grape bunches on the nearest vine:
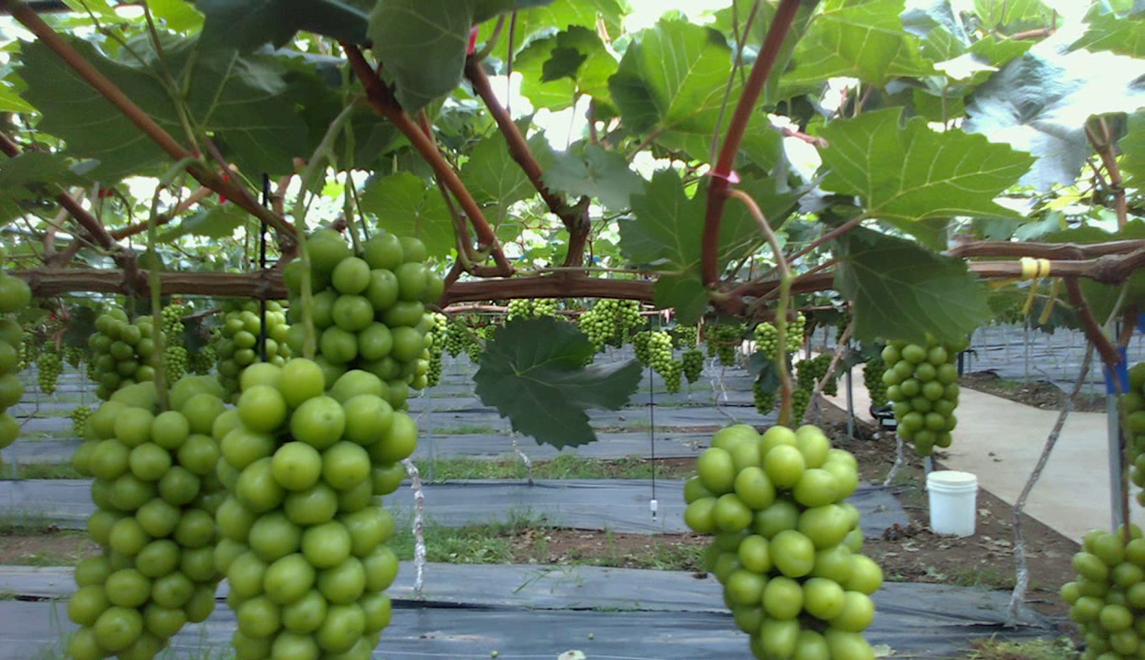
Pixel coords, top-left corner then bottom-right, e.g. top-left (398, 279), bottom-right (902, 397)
top-left (684, 422), bottom-right (881, 659)
top-left (66, 373), bottom-right (227, 659)
top-left (283, 230), bottom-right (446, 408)
top-left (215, 355), bottom-right (417, 659)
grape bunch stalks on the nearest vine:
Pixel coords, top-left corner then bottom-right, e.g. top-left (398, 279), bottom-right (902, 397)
top-left (148, 157), bottom-right (213, 413)
top-left (725, 191), bottom-right (790, 426)
top-left (293, 100), bottom-right (373, 360)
